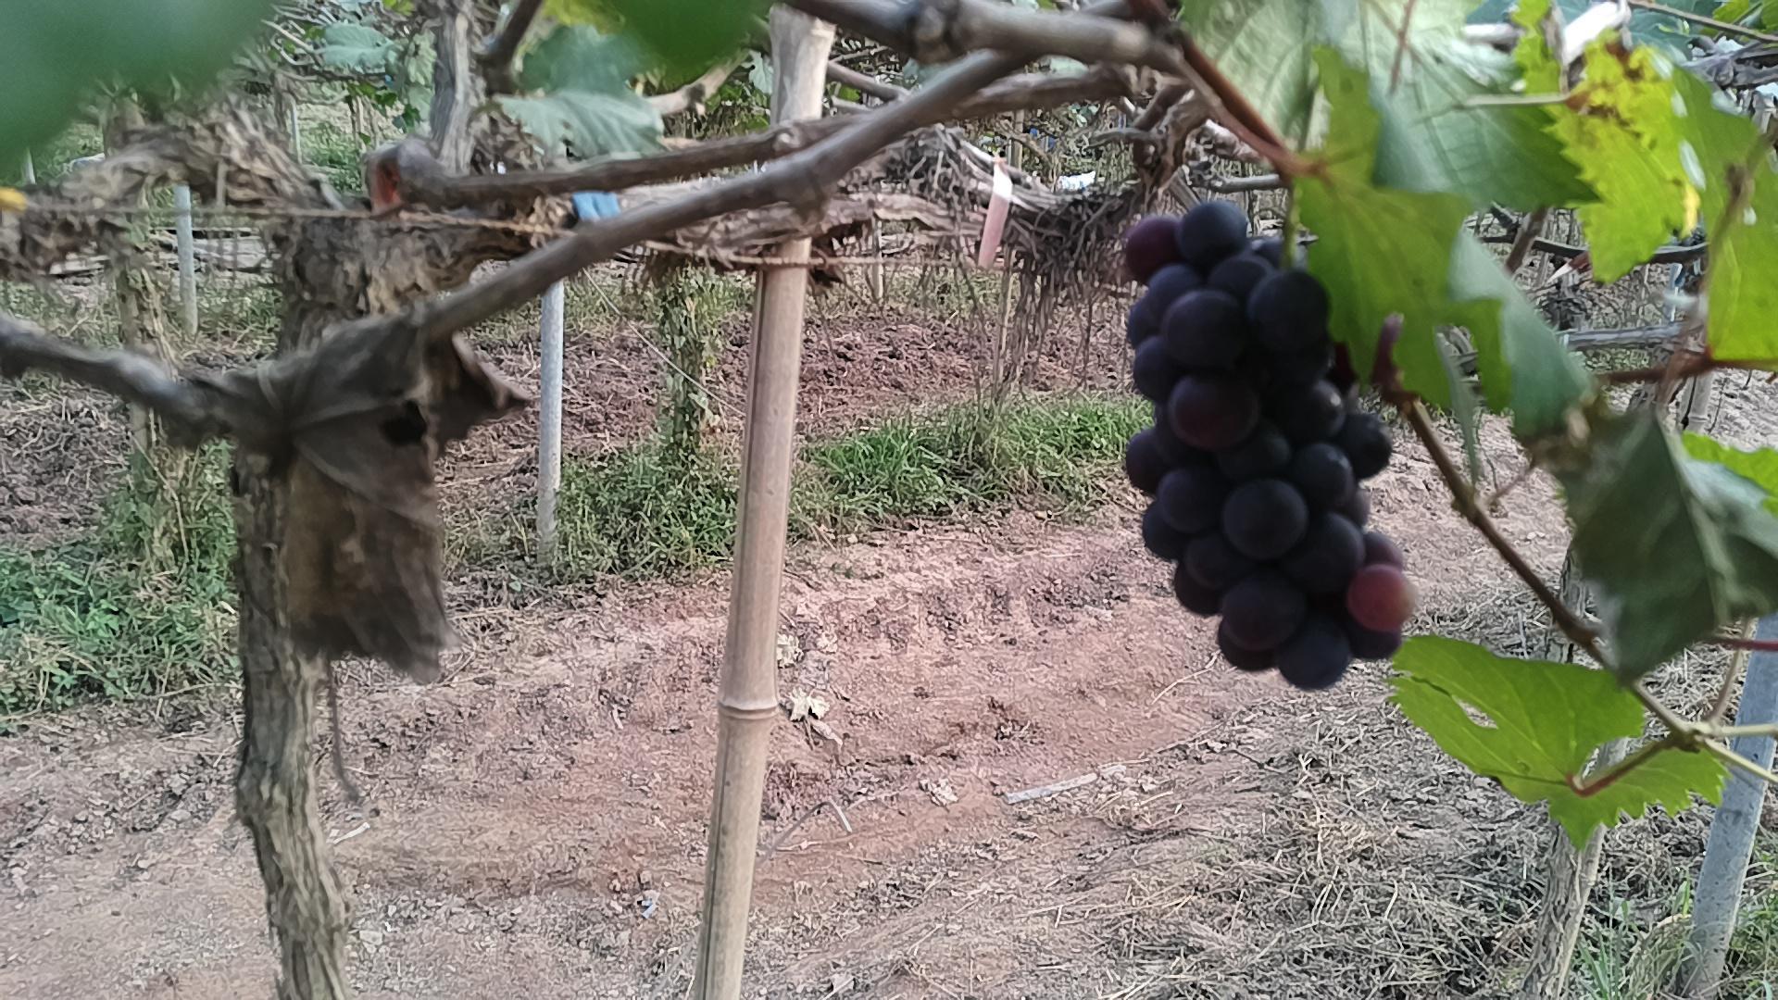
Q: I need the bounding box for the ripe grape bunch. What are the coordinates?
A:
[1125,200,1412,689]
